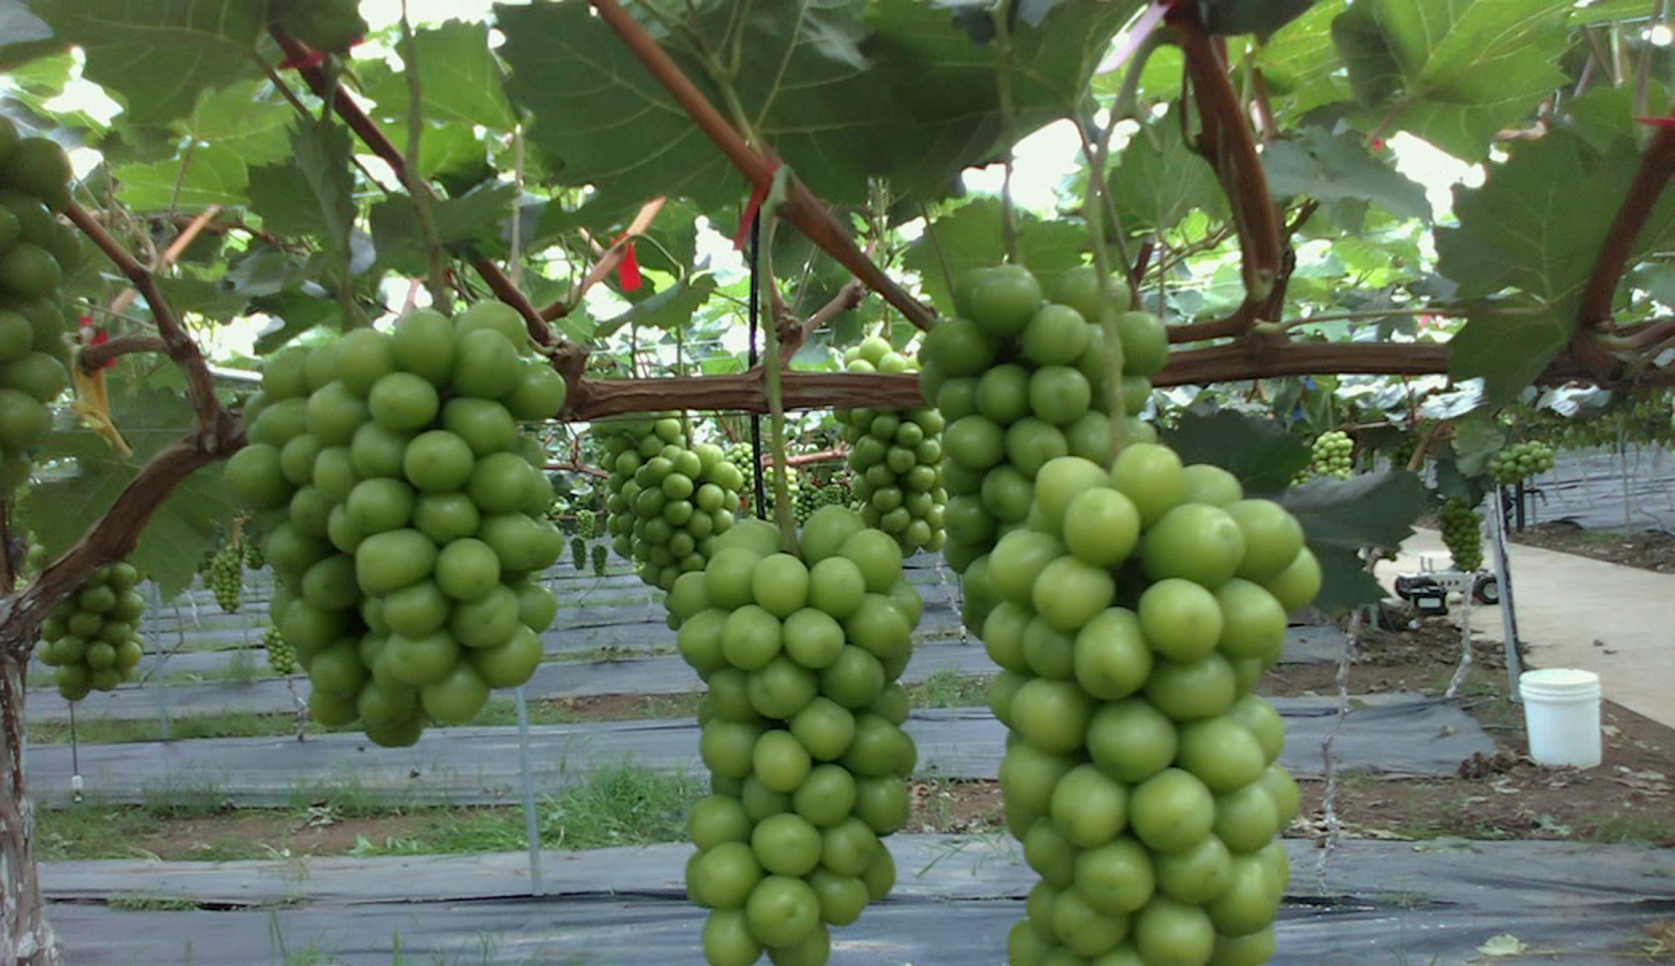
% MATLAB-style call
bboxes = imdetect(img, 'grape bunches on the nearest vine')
[981,439,1323,965]
[0,117,81,495]
[306,302,565,723]
[671,502,922,965]
[227,342,438,749]
[919,264,1169,639]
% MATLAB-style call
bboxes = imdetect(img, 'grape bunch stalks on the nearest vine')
[757,165,799,558]
[1083,28,1185,462]
[401,20,448,314]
